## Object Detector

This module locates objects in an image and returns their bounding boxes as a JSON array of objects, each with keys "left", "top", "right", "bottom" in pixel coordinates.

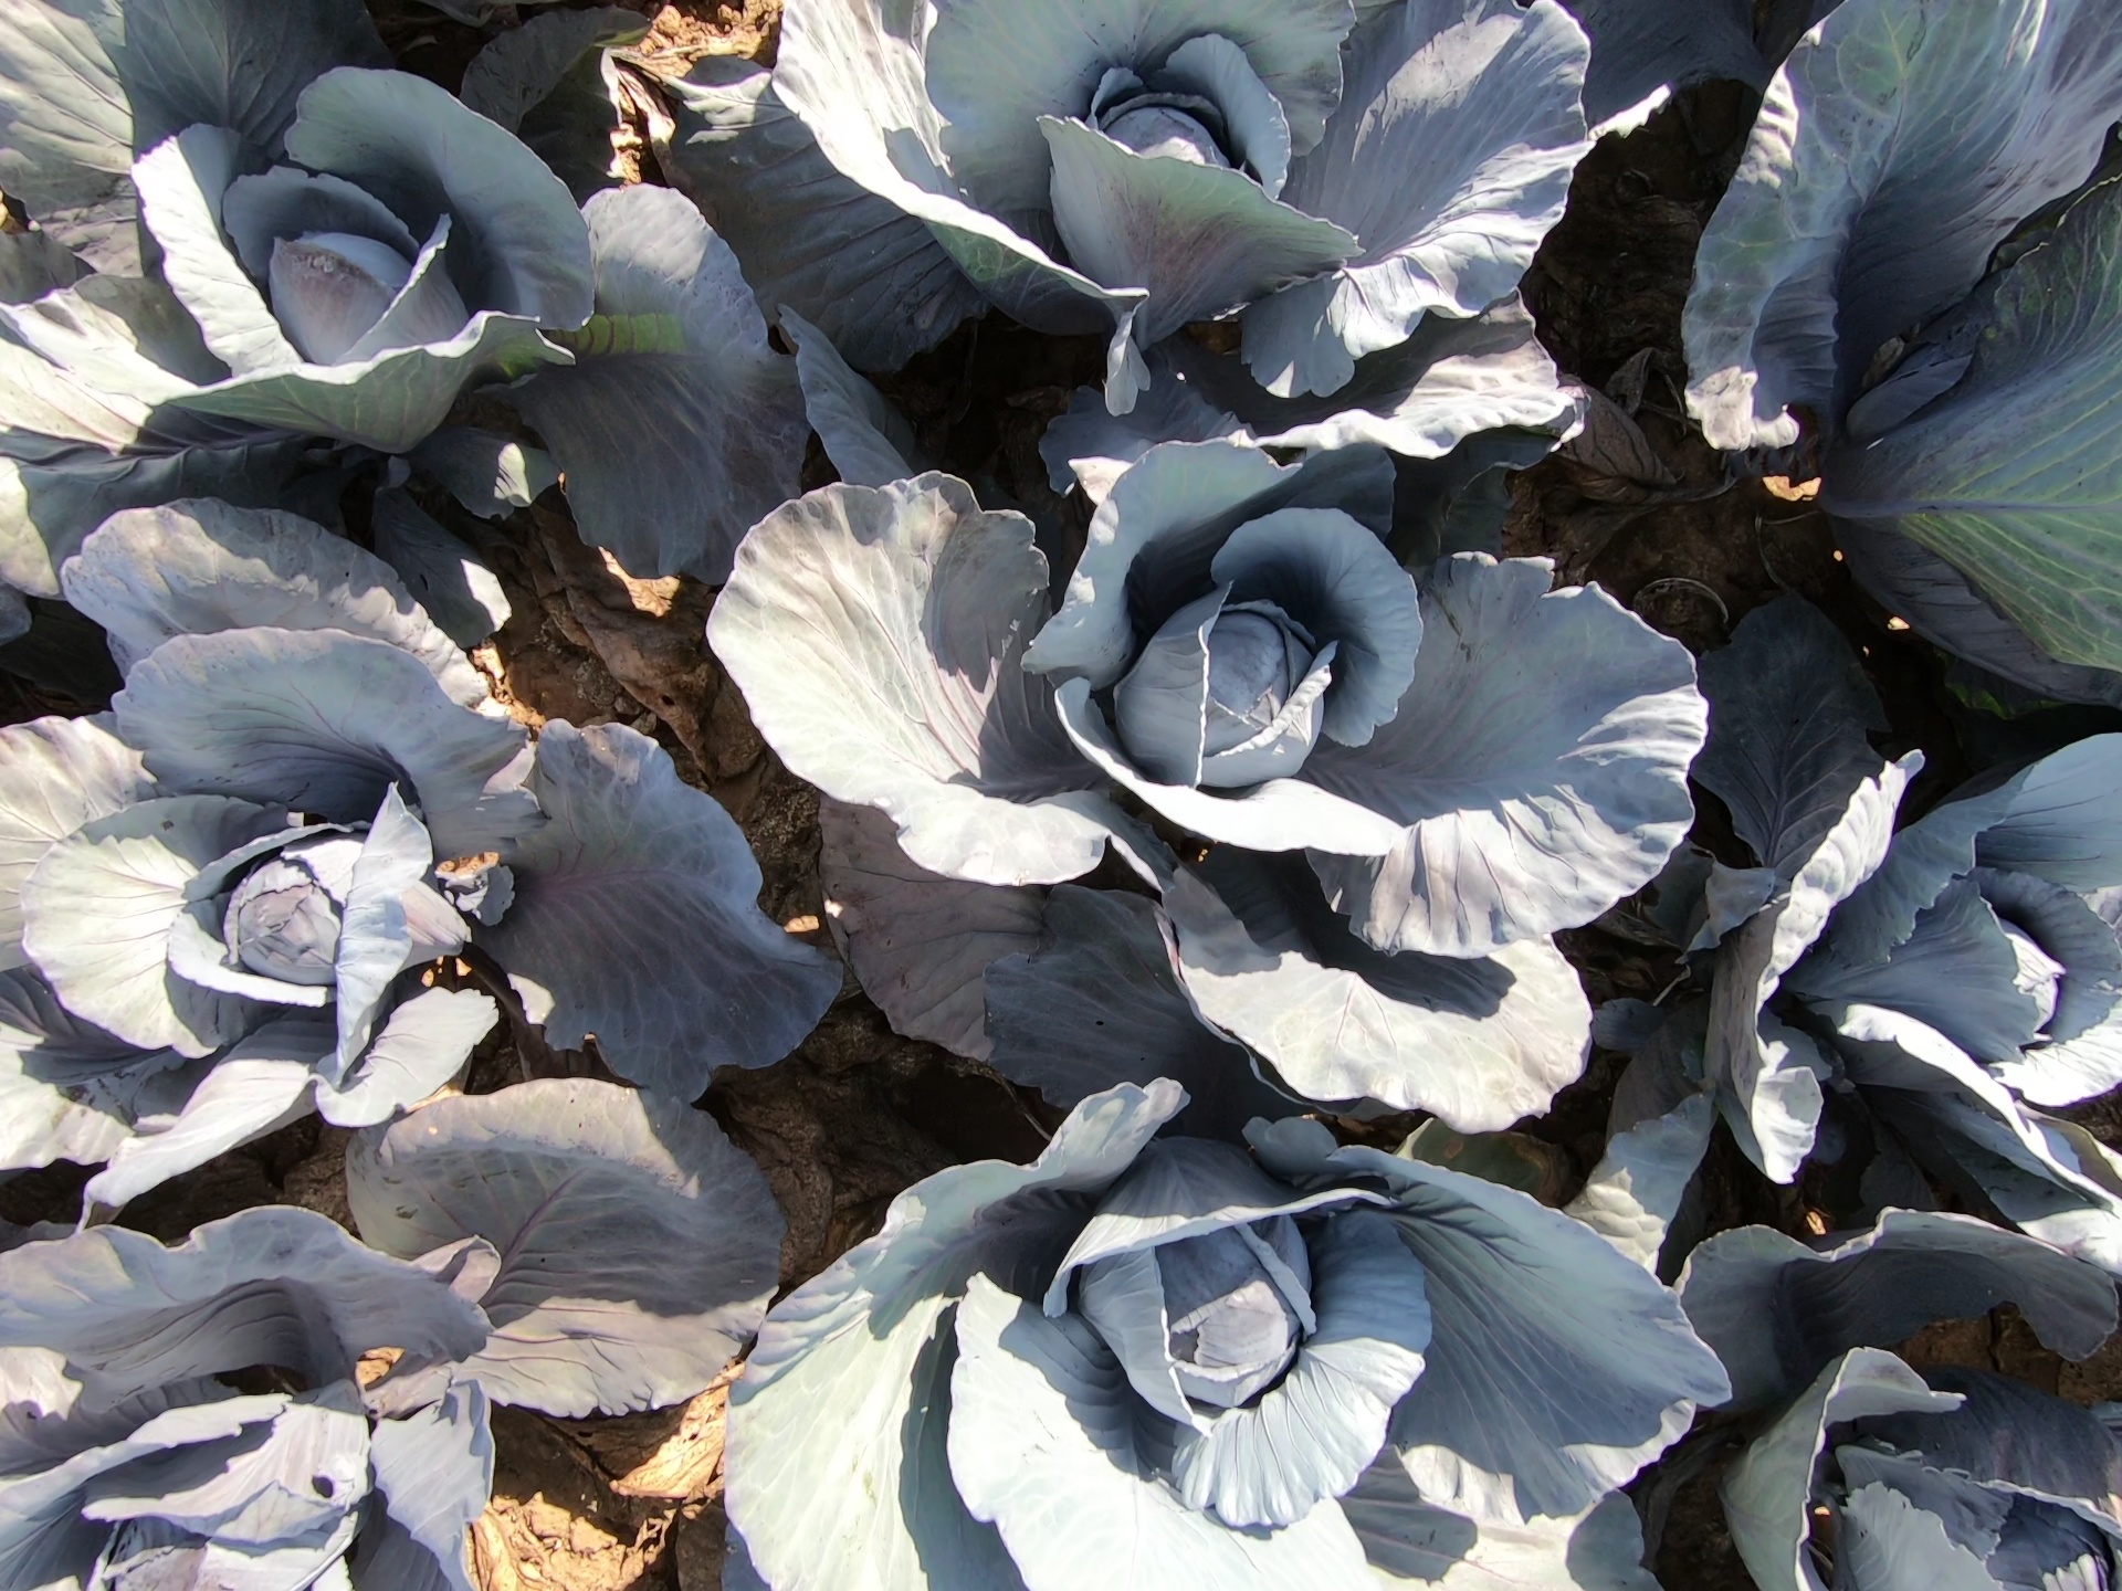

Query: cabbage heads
[
  {"left": 217, "top": 835, "right": 440, "bottom": 986},
  {"left": 1913, "top": 1434, "right": 2119, "bottom": 1589},
  {"left": 93, "top": 1431, "right": 357, "bottom": 1588},
  {"left": 1143, "top": 603, "right": 1319, "bottom": 770},
  {"left": 1114, "top": 1179, "right": 1320, "bottom": 1418},
  {"left": 1086, "top": 95, "right": 1247, "bottom": 266},
  {"left": 1901, "top": 905, "right": 2076, "bottom": 1049},
  {"left": 272, "top": 230, "right": 455, "bottom": 393}
]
